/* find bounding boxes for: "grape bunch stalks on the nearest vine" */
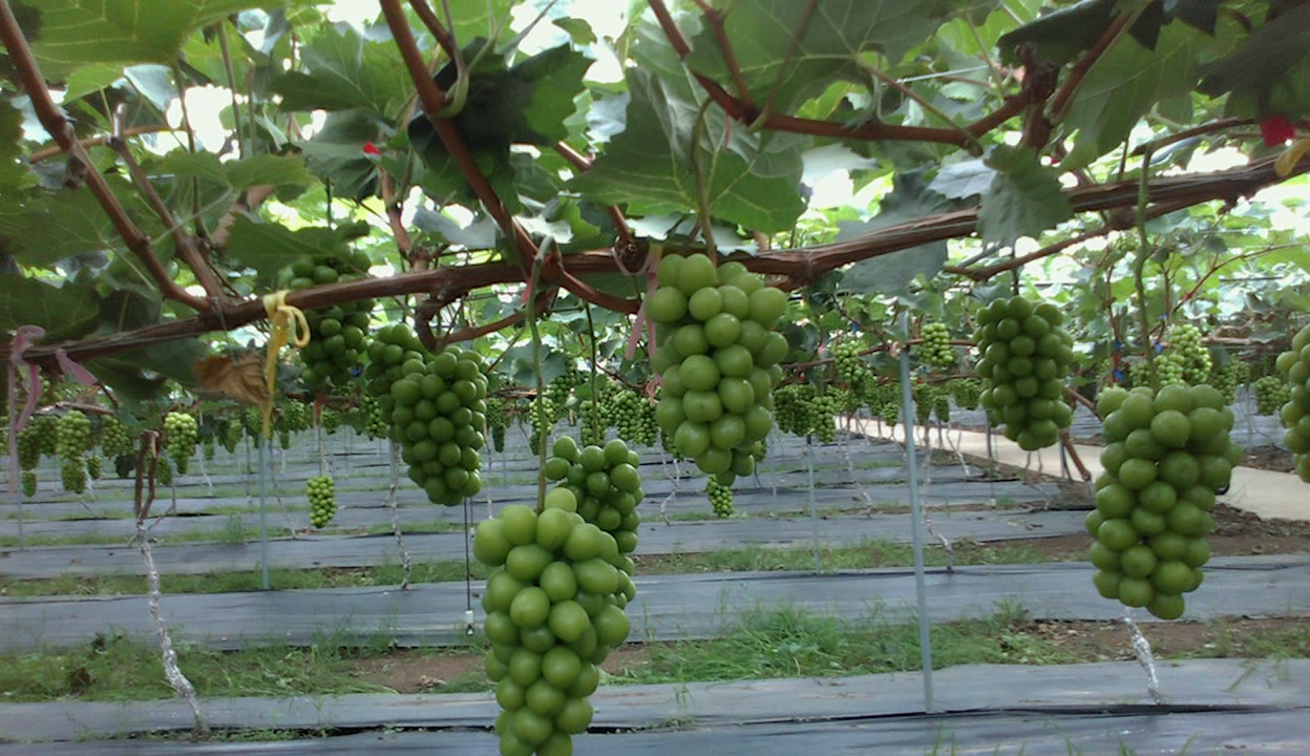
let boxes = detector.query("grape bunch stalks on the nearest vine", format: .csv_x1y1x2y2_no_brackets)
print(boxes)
691,97,718,265
1134,153,1161,393
527,236,559,517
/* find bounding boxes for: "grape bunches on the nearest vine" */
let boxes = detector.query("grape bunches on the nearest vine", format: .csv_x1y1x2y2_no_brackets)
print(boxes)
472,485,633,755
645,254,789,487
1086,385,1241,622
1276,325,1308,483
